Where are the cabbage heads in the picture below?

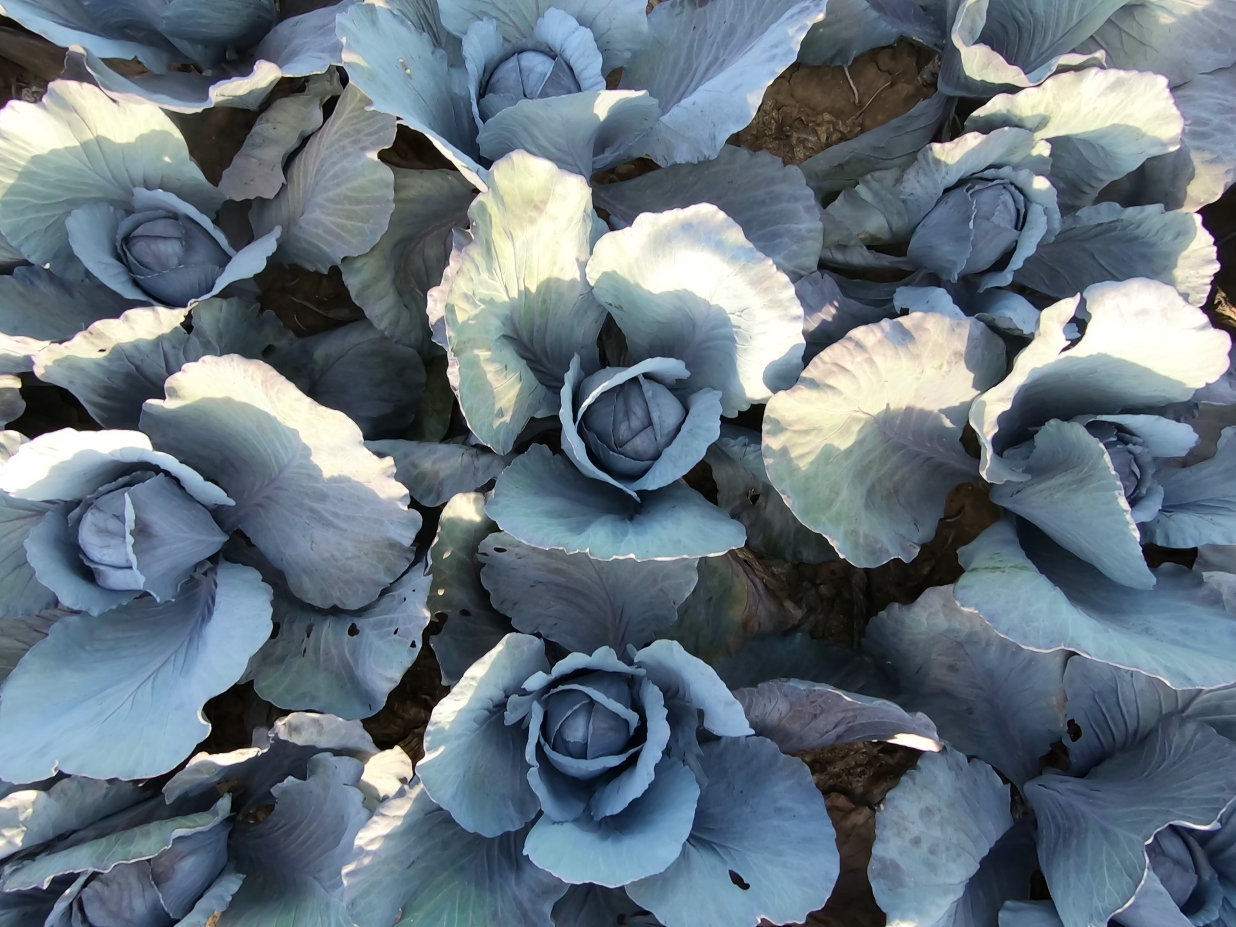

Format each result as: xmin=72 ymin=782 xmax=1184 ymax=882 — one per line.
xmin=487 ymin=49 xmax=579 ymax=138
xmin=932 ymin=182 xmax=1018 ymax=267
xmin=588 ymin=377 xmax=679 ymax=471
xmin=78 ymin=834 xmax=214 ymax=926
xmin=550 ymin=677 xmax=630 ymax=771
xmin=1057 ymin=437 xmax=1137 ymax=503
xmin=1084 ymin=805 xmax=1194 ymax=912
xmin=120 ymin=216 xmax=226 ymax=297
xmin=80 ymin=485 xmax=201 ymax=579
